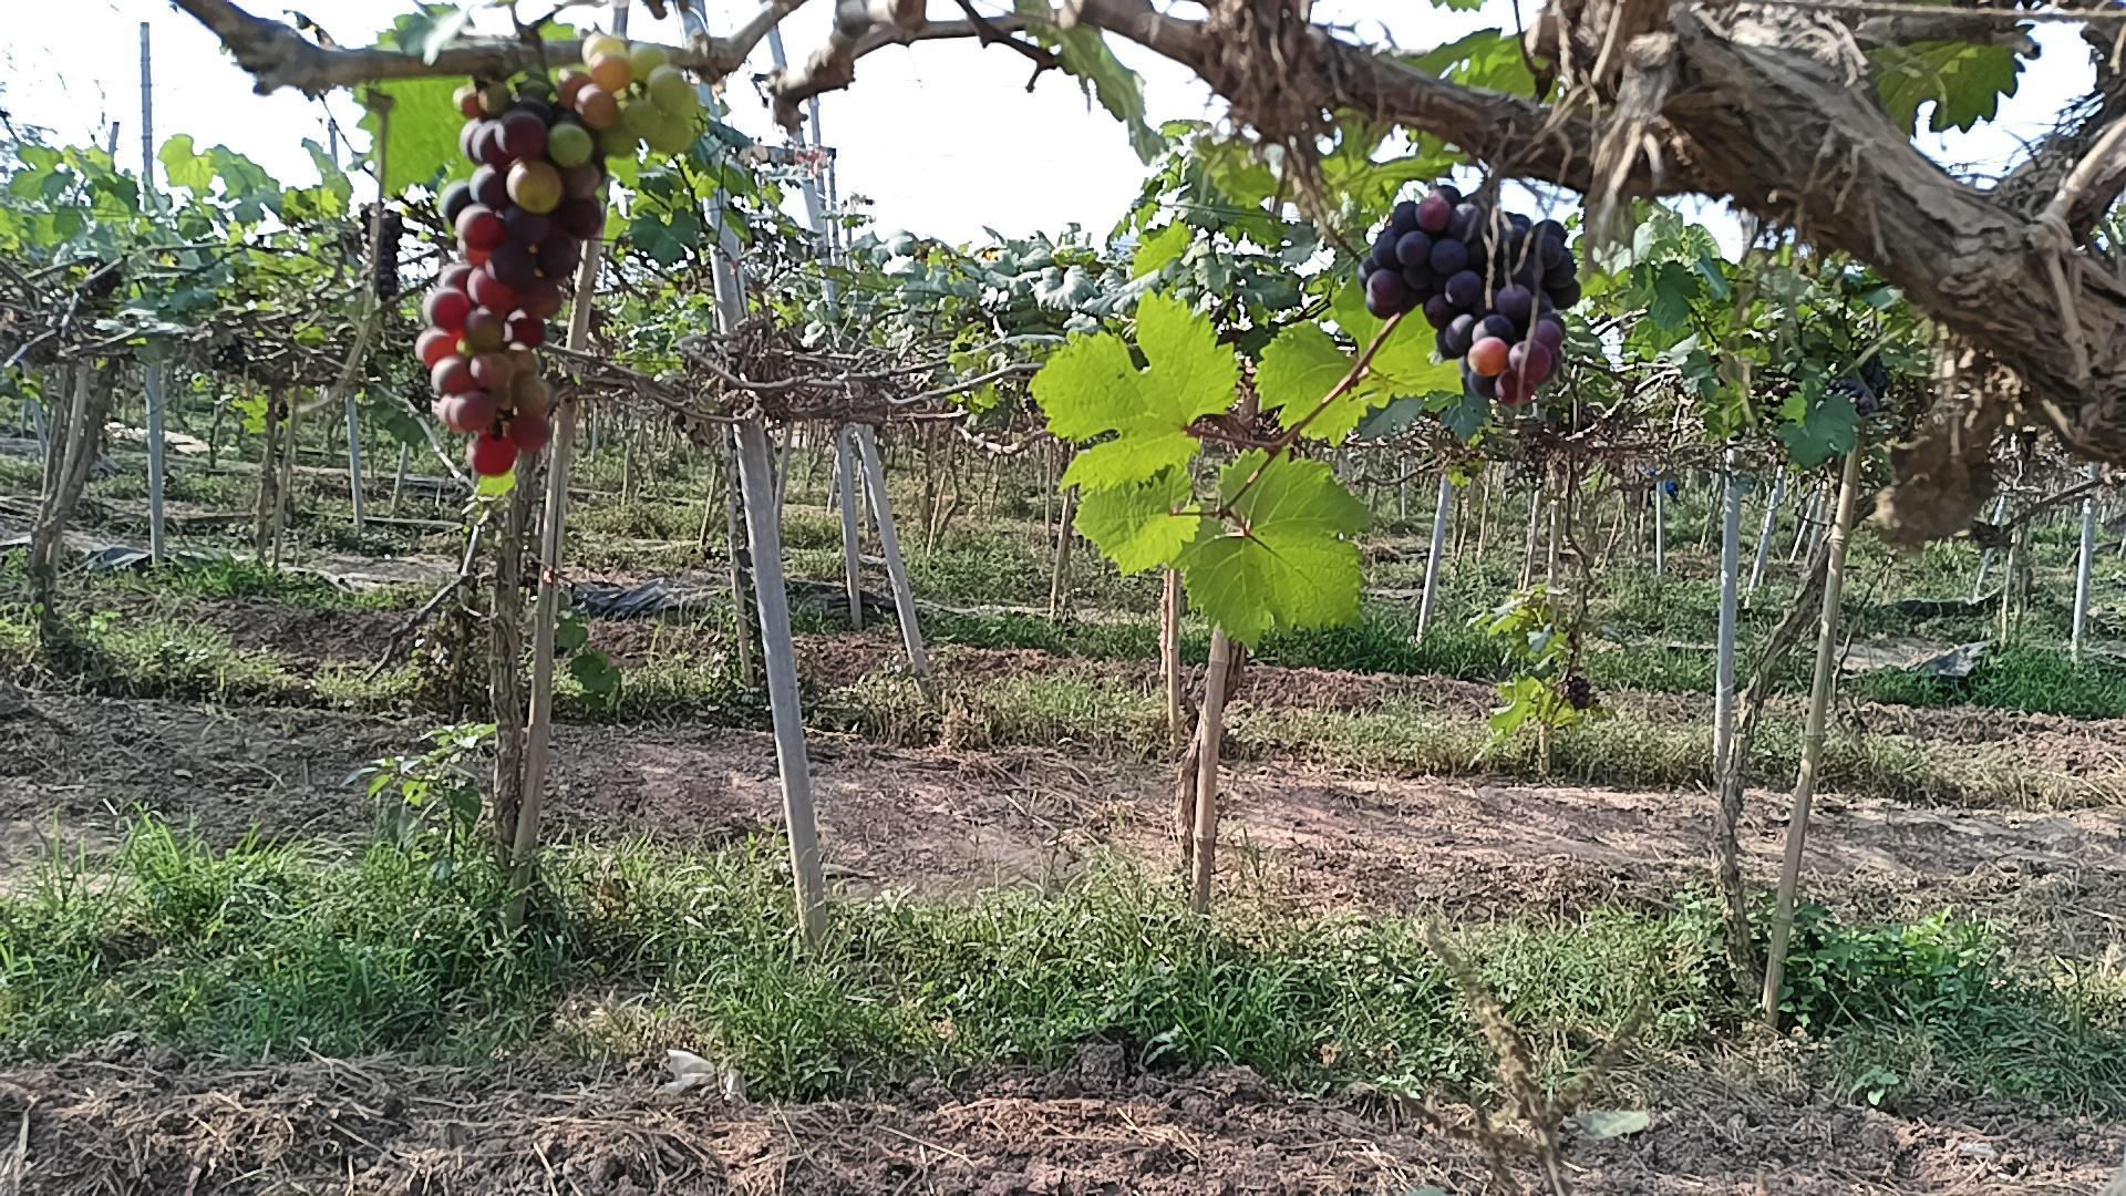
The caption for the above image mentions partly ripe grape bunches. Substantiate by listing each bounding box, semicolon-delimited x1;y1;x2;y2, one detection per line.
1361;186;1581;405
416;34;706;478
